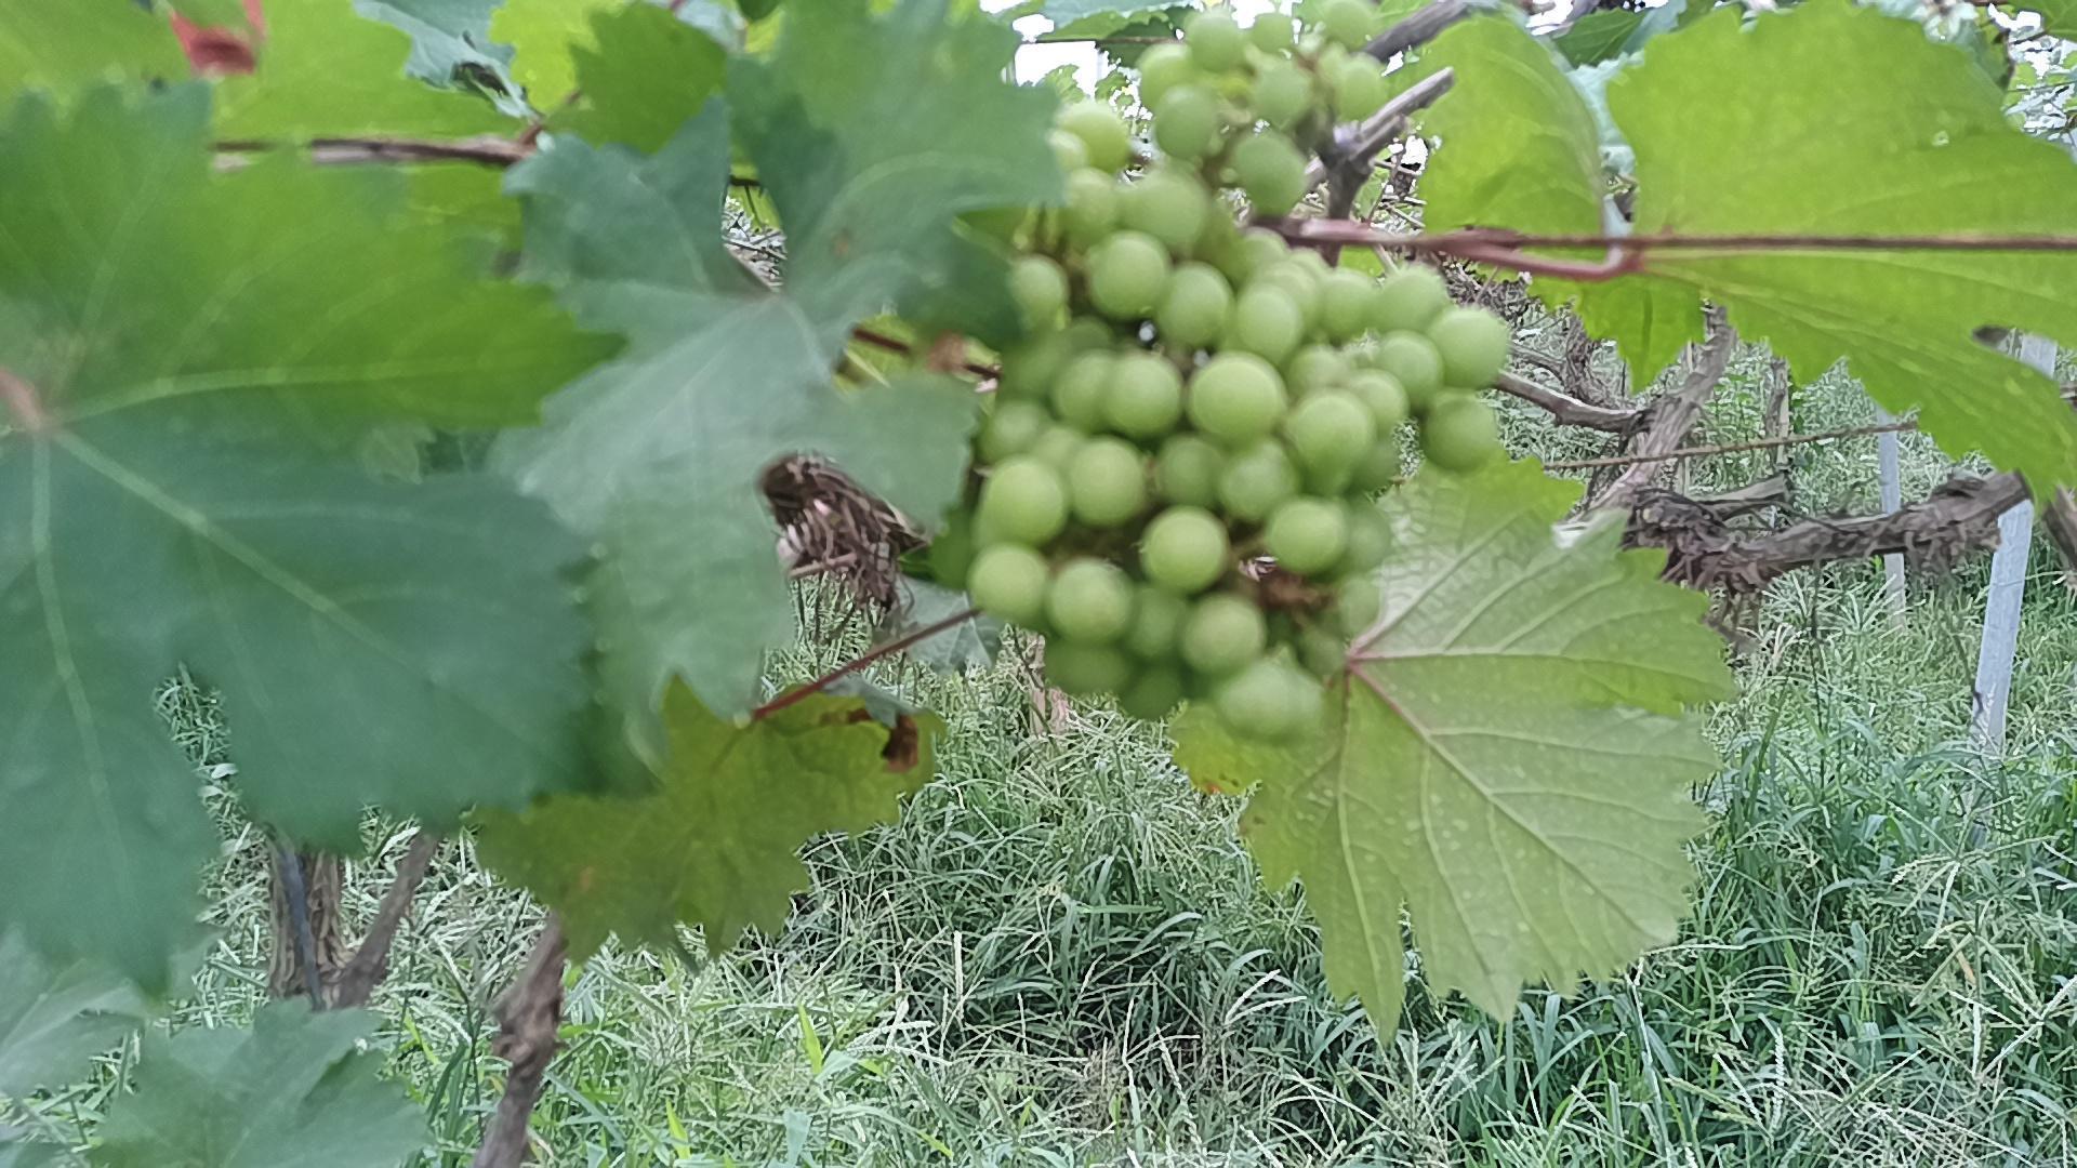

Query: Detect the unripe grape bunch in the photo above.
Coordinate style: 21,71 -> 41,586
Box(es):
967,0 -> 1505,730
